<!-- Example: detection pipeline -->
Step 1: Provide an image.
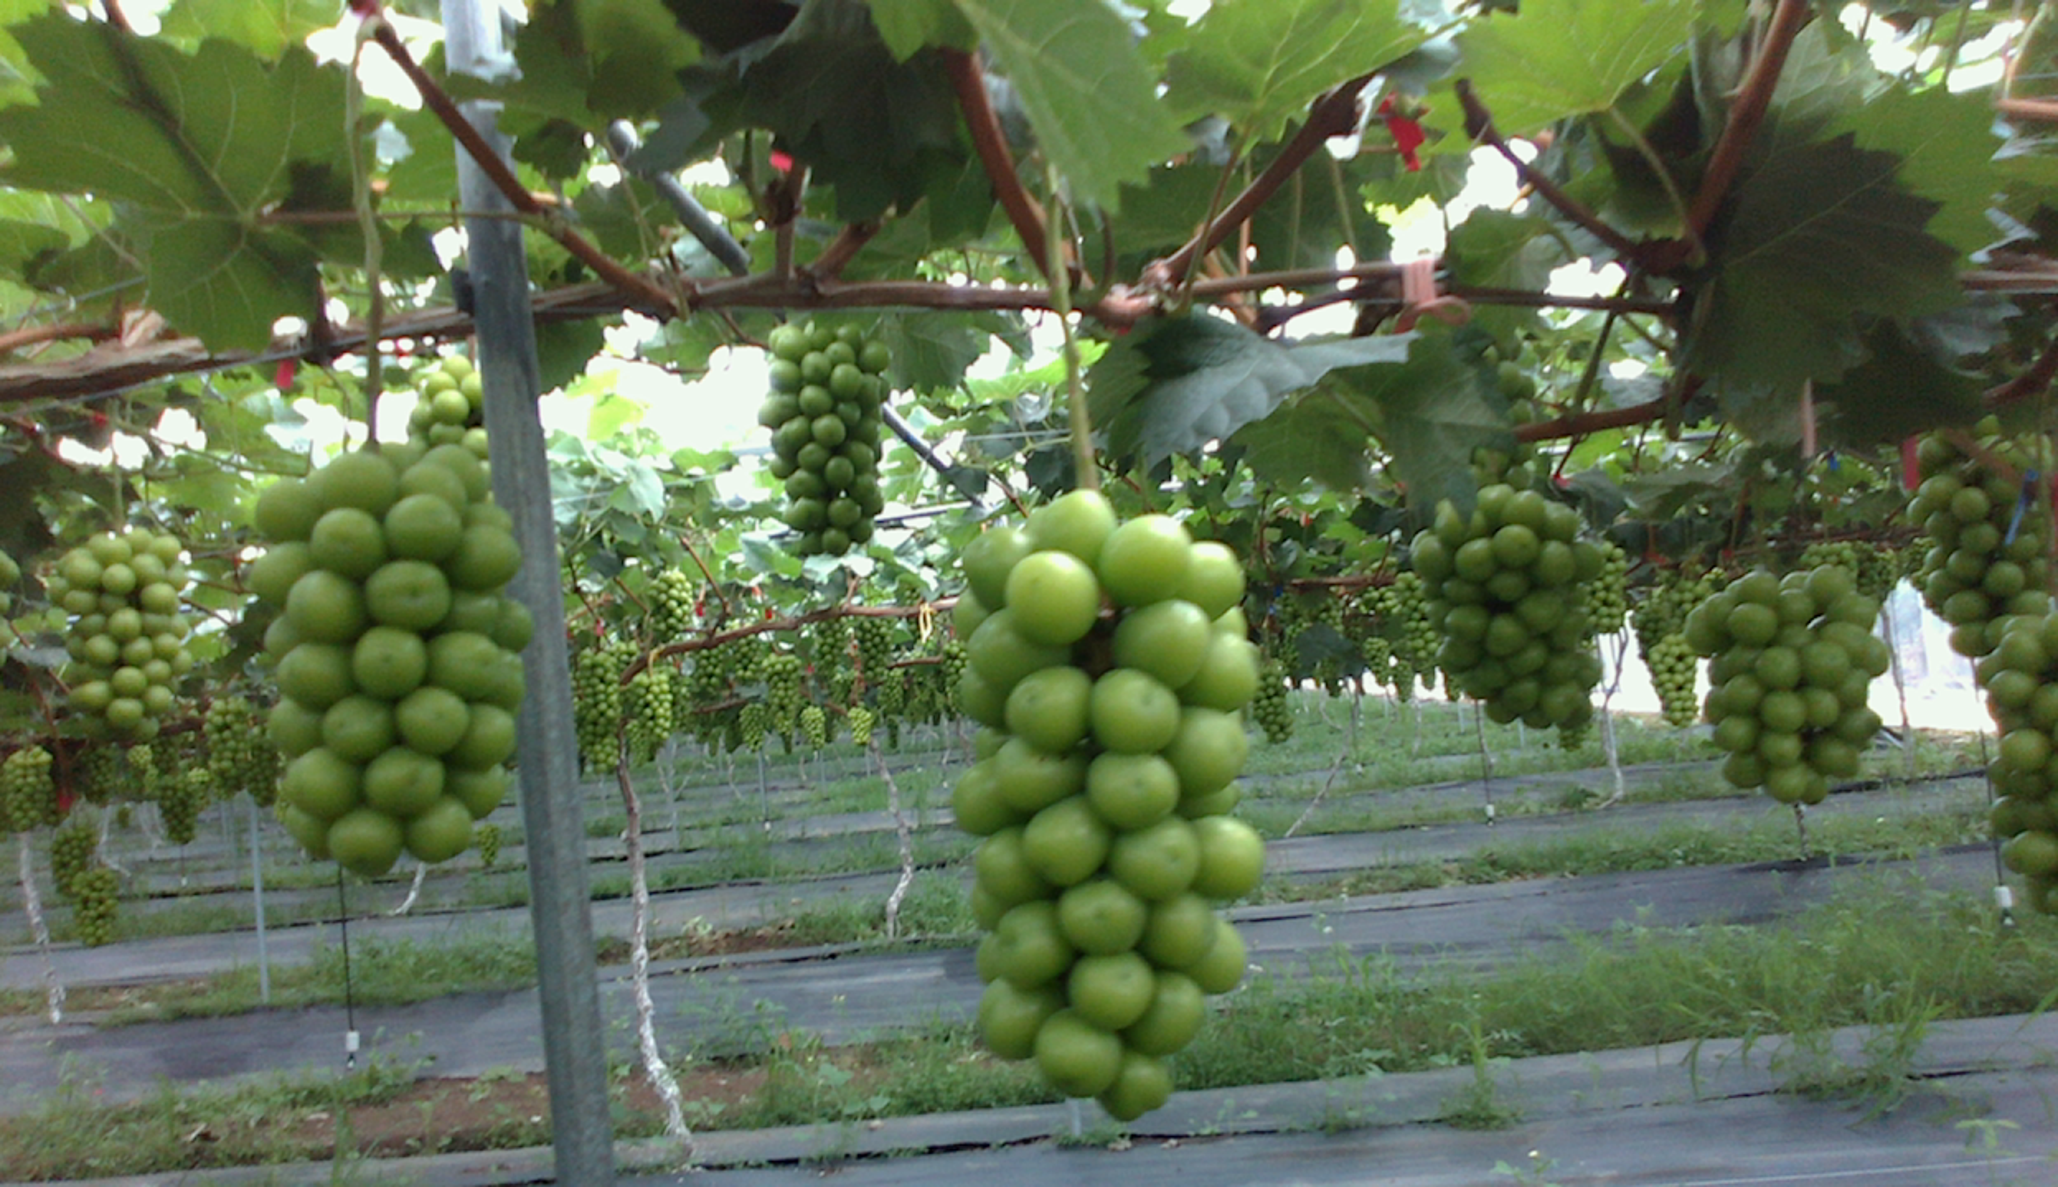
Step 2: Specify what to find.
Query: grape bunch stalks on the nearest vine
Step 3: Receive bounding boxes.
[1037,150,1098,488]
[345,18,383,448]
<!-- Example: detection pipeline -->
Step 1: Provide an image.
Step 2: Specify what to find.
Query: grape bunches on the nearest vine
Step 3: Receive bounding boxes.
[251,443,536,877]
[951,490,1265,1124]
